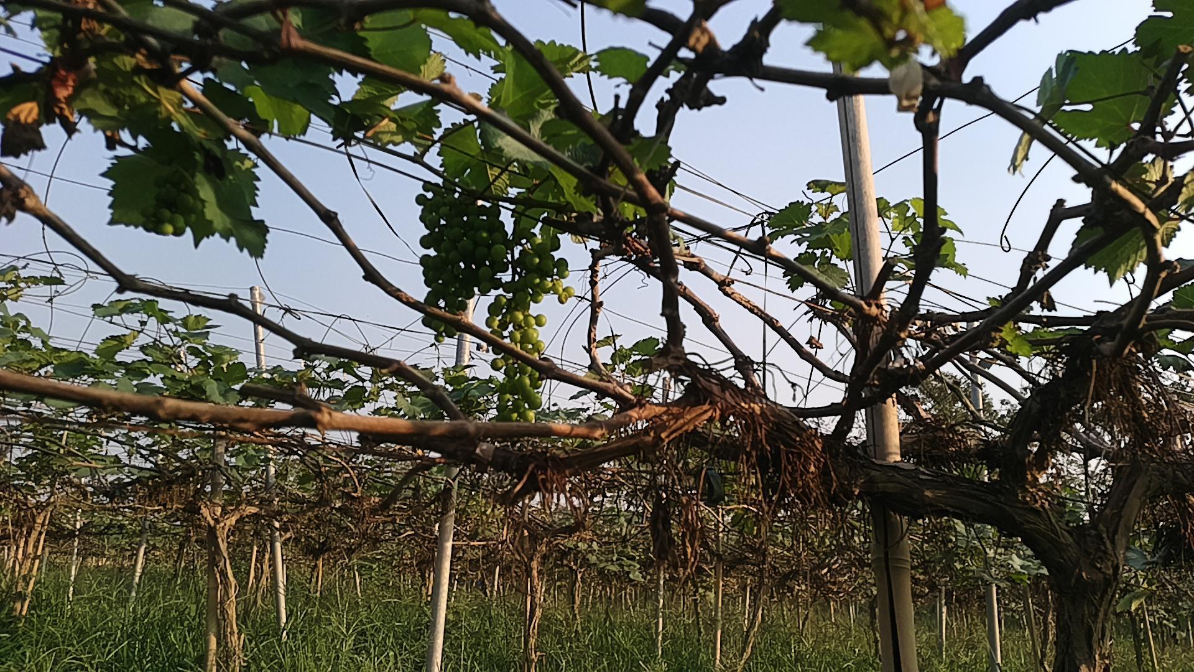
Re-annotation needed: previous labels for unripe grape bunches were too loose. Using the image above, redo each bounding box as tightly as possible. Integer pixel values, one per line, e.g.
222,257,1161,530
486,225,576,422
415,177,511,343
